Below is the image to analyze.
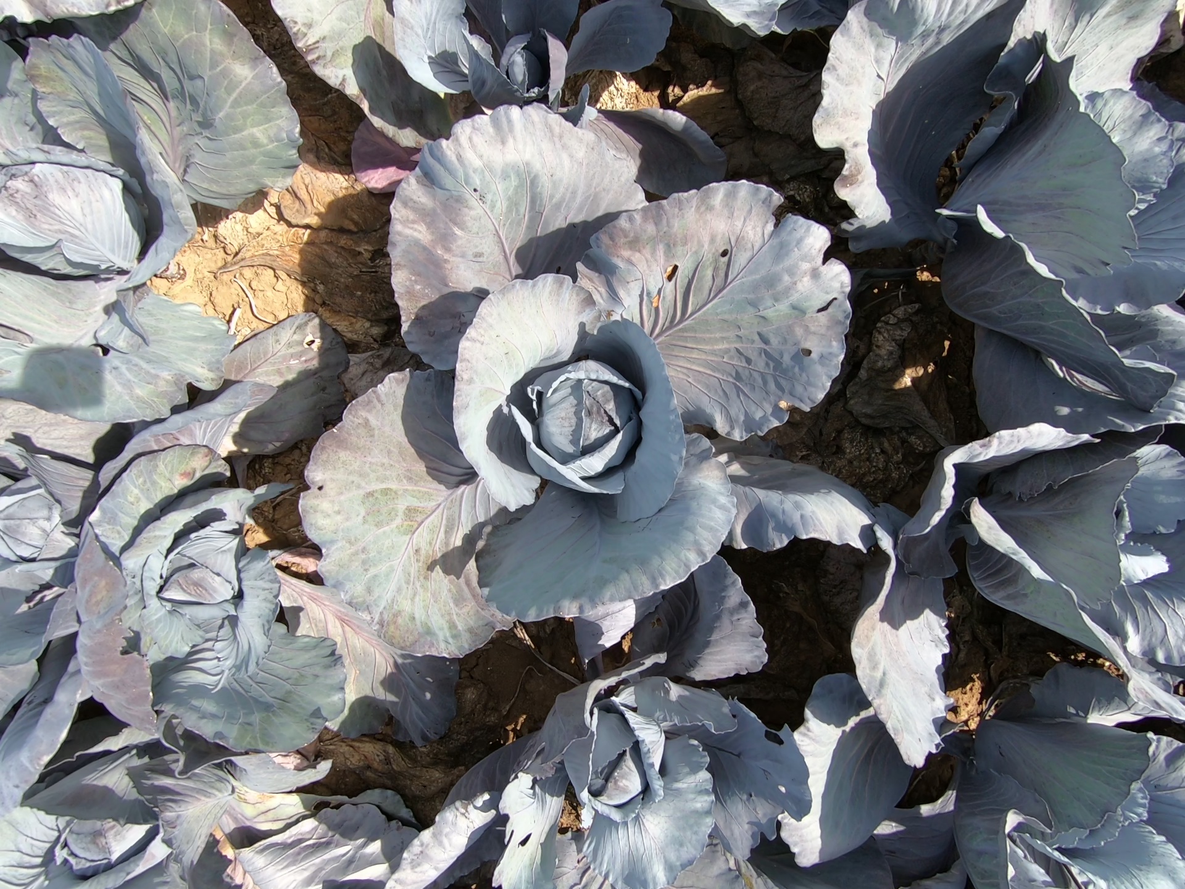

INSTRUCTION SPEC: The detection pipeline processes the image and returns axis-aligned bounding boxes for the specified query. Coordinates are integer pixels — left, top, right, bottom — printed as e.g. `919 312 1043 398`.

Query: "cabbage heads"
2 469 127 573
539 362 636 472
59 771 168 870
562 712 659 808
1007 483 1129 578
991 740 1107 844
2 146 141 277
503 49 547 94
166 529 246 605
